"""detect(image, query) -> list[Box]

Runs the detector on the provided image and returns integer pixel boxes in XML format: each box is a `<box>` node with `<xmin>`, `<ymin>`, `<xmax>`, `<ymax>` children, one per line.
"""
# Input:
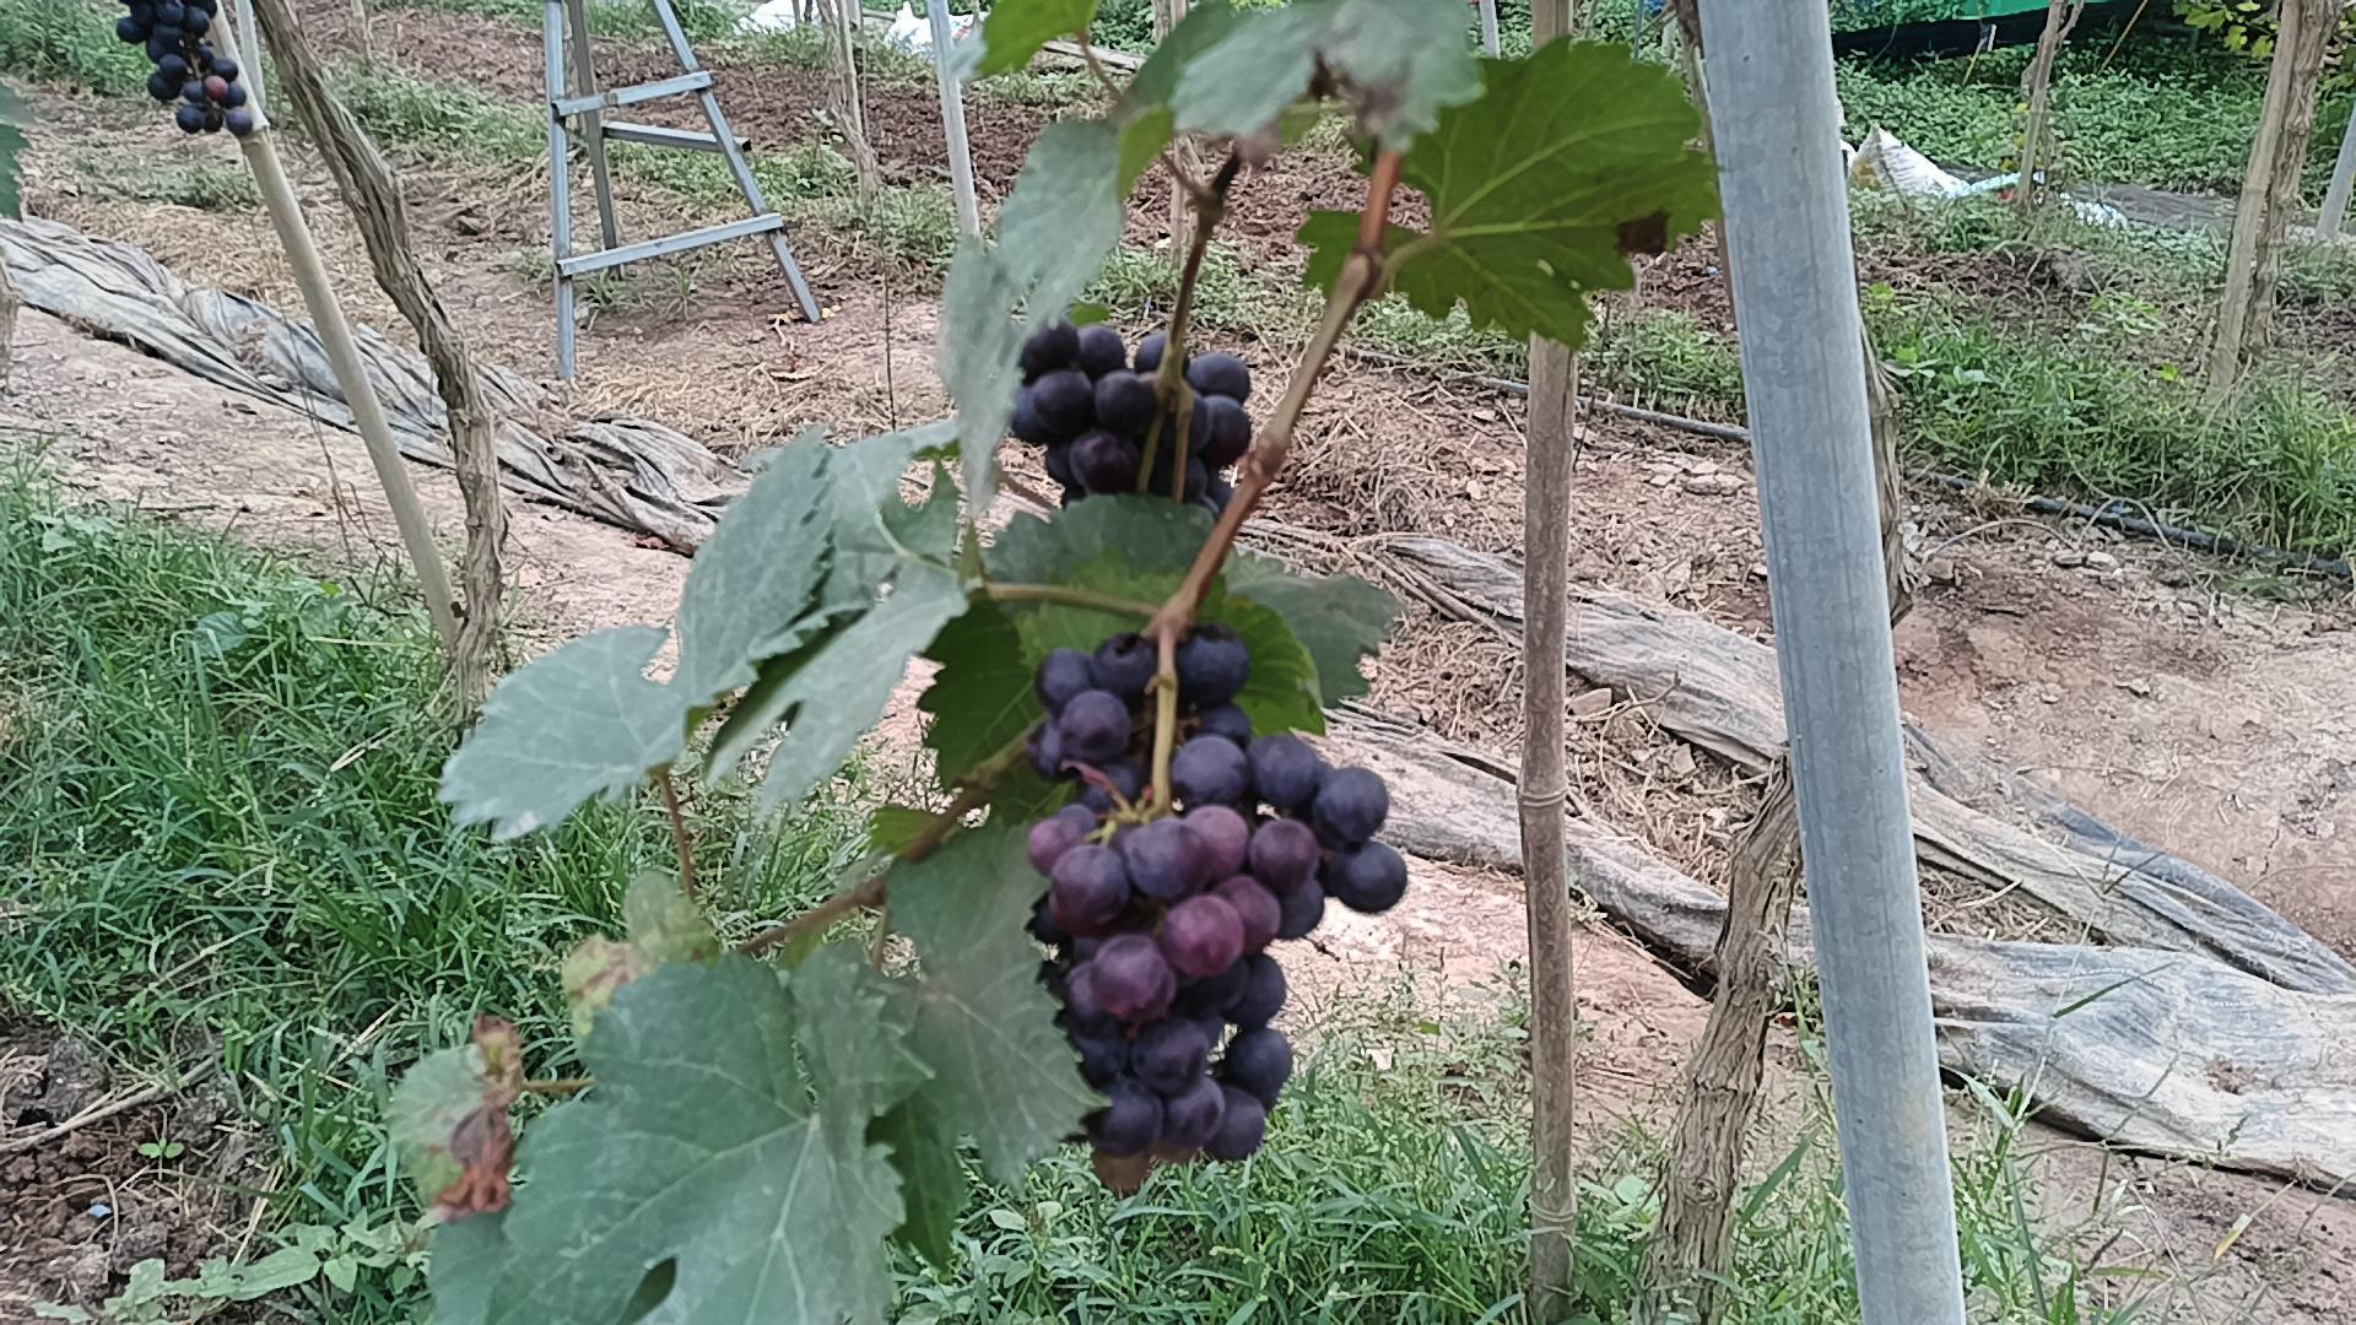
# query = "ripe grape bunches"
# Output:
<box><xmin>1011</xmin><ymin>321</ymin><xmax>1250</xmax><ymax>509</ymax></box>
<box><xmin>1028</xmin><ymin>624</ymin><xmax>1404</xmax><ymax>1195</ymax></box>
<box><xmin>117</xmin><ymin>0</ymin><xmax>254</xmax><ymax>137</ymax></box>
